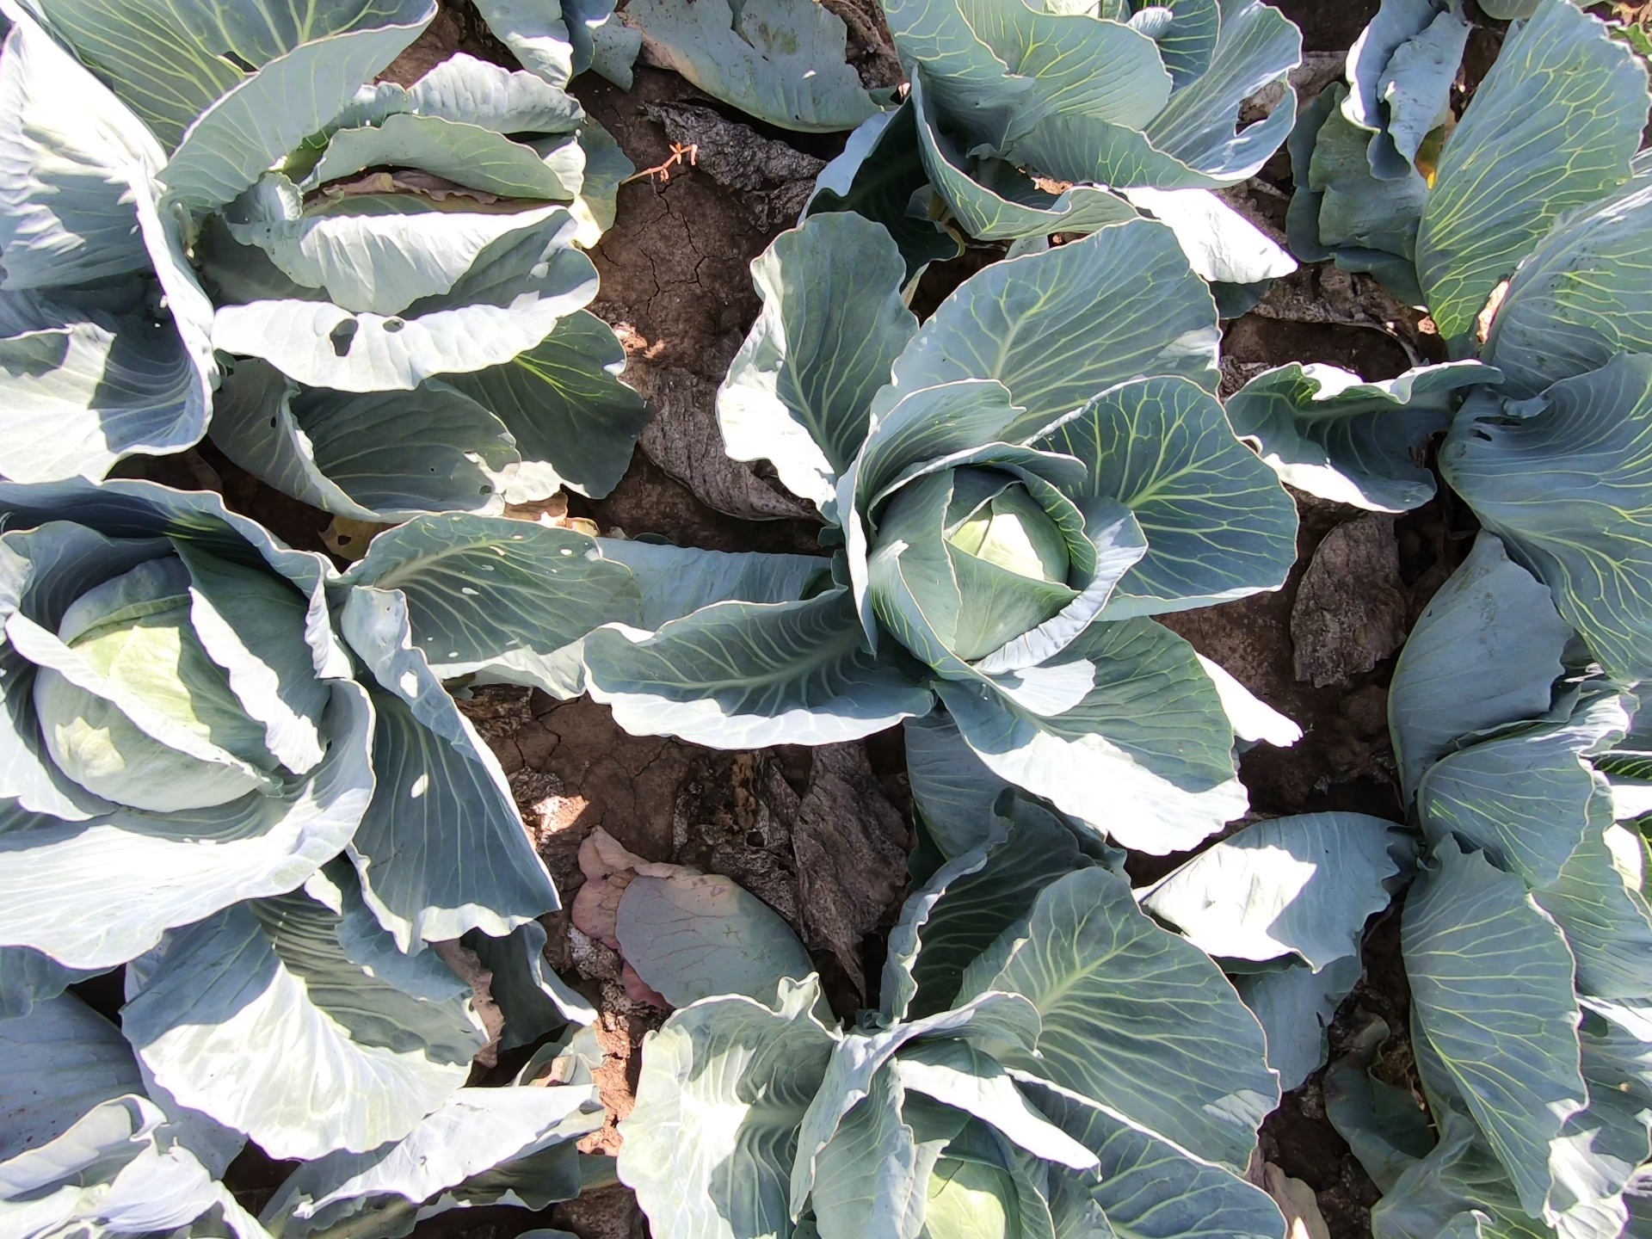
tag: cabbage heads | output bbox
[891,470,1076,661]
[973,2,1124,101]
[1524,789,1647,946]
[811,1045,1046,1236]
[37,565,325,800]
